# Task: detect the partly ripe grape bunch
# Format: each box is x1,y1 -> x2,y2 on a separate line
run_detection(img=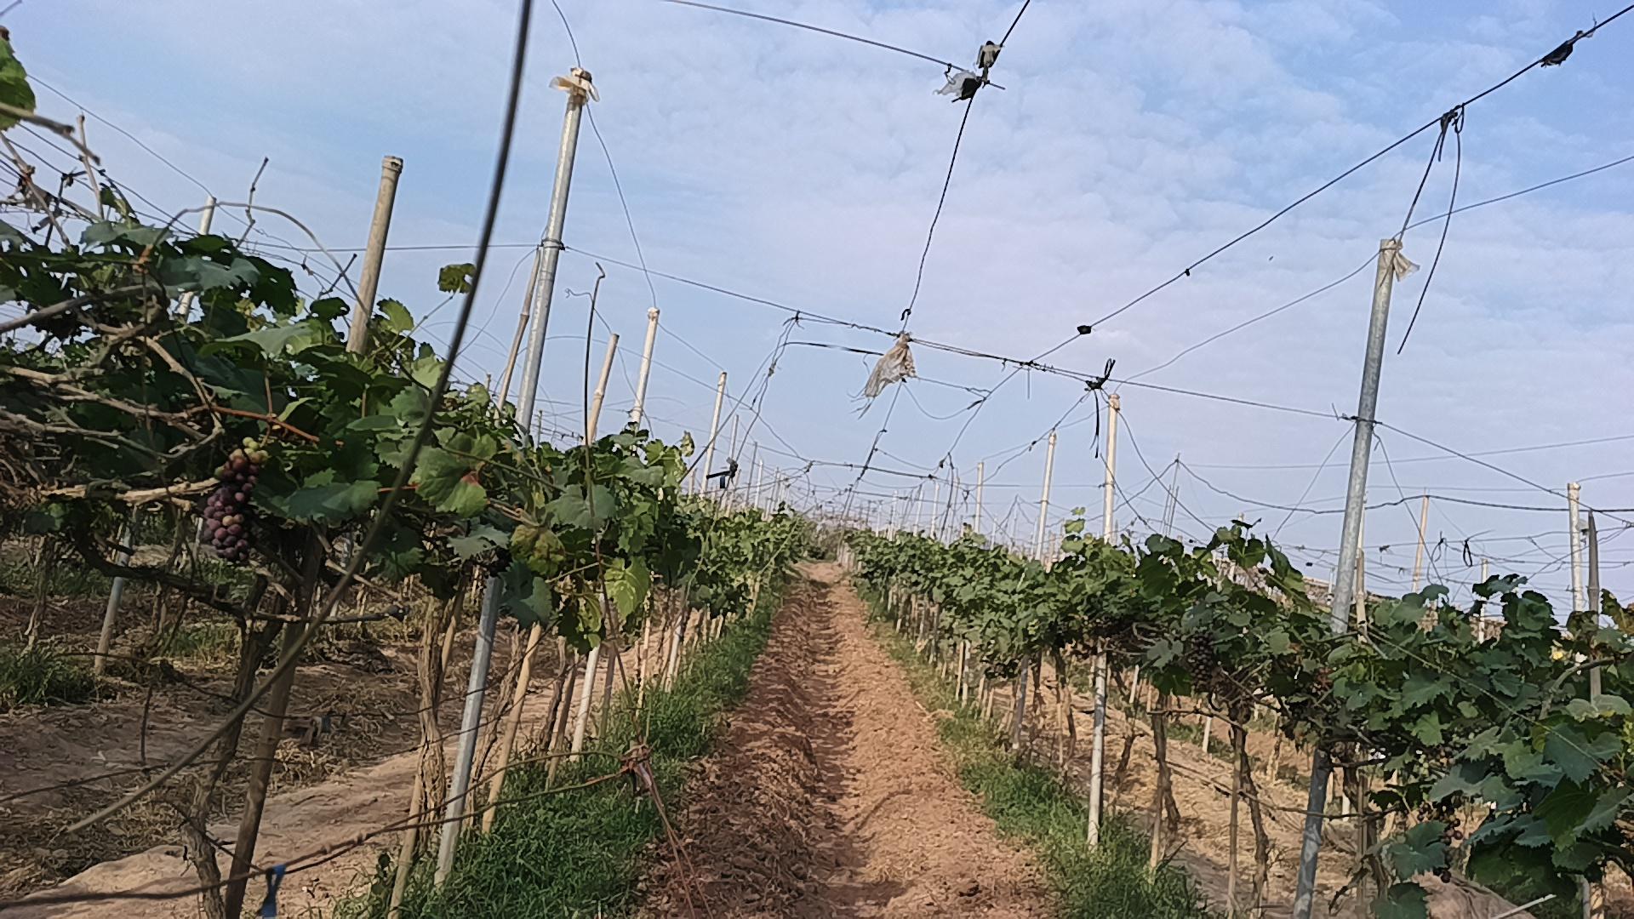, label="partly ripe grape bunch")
203,439 -> 267,562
